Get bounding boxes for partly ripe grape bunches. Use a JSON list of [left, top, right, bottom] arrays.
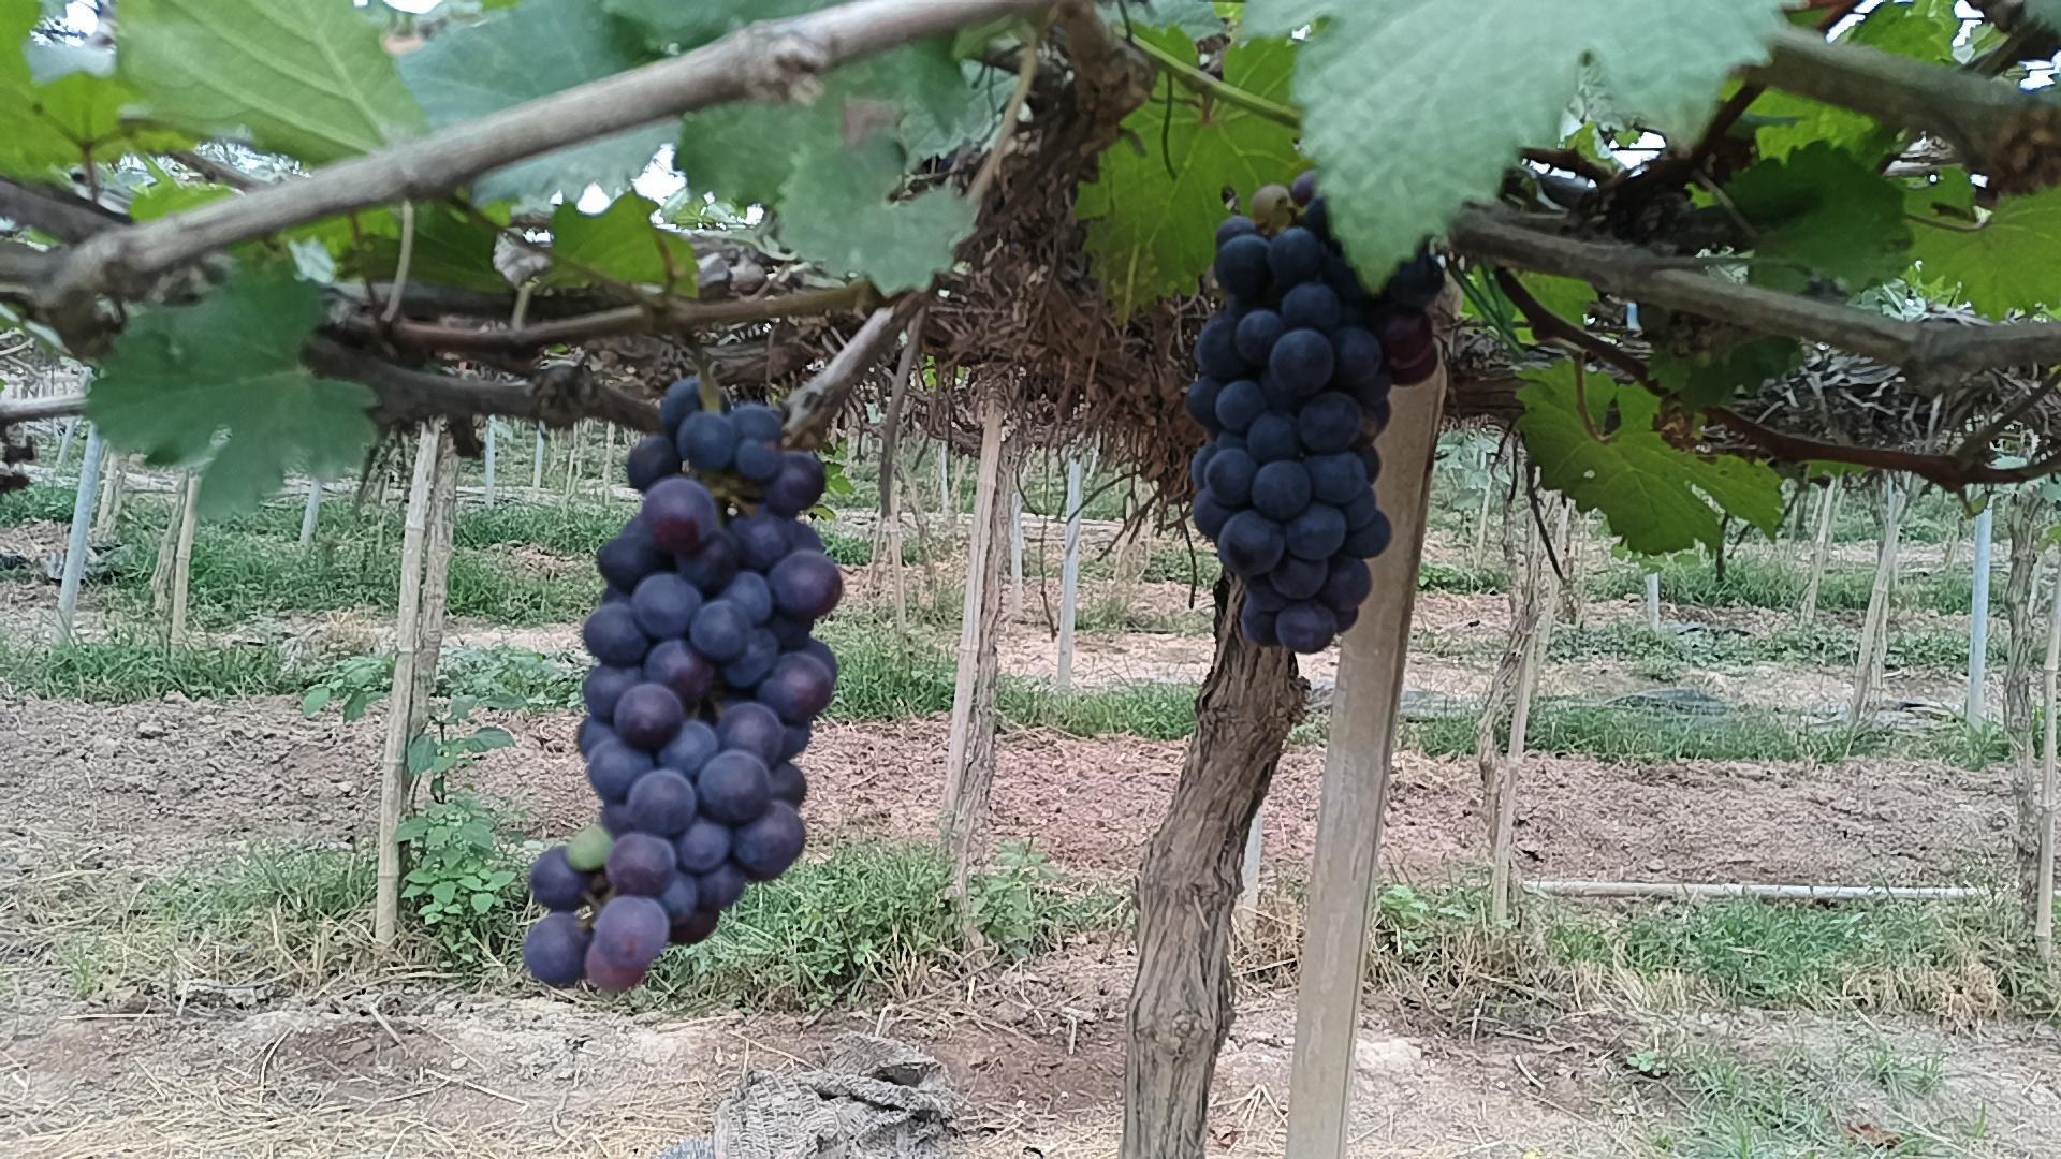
[[1185, 172, 1443, 655], [522, 376, 842, 993]]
